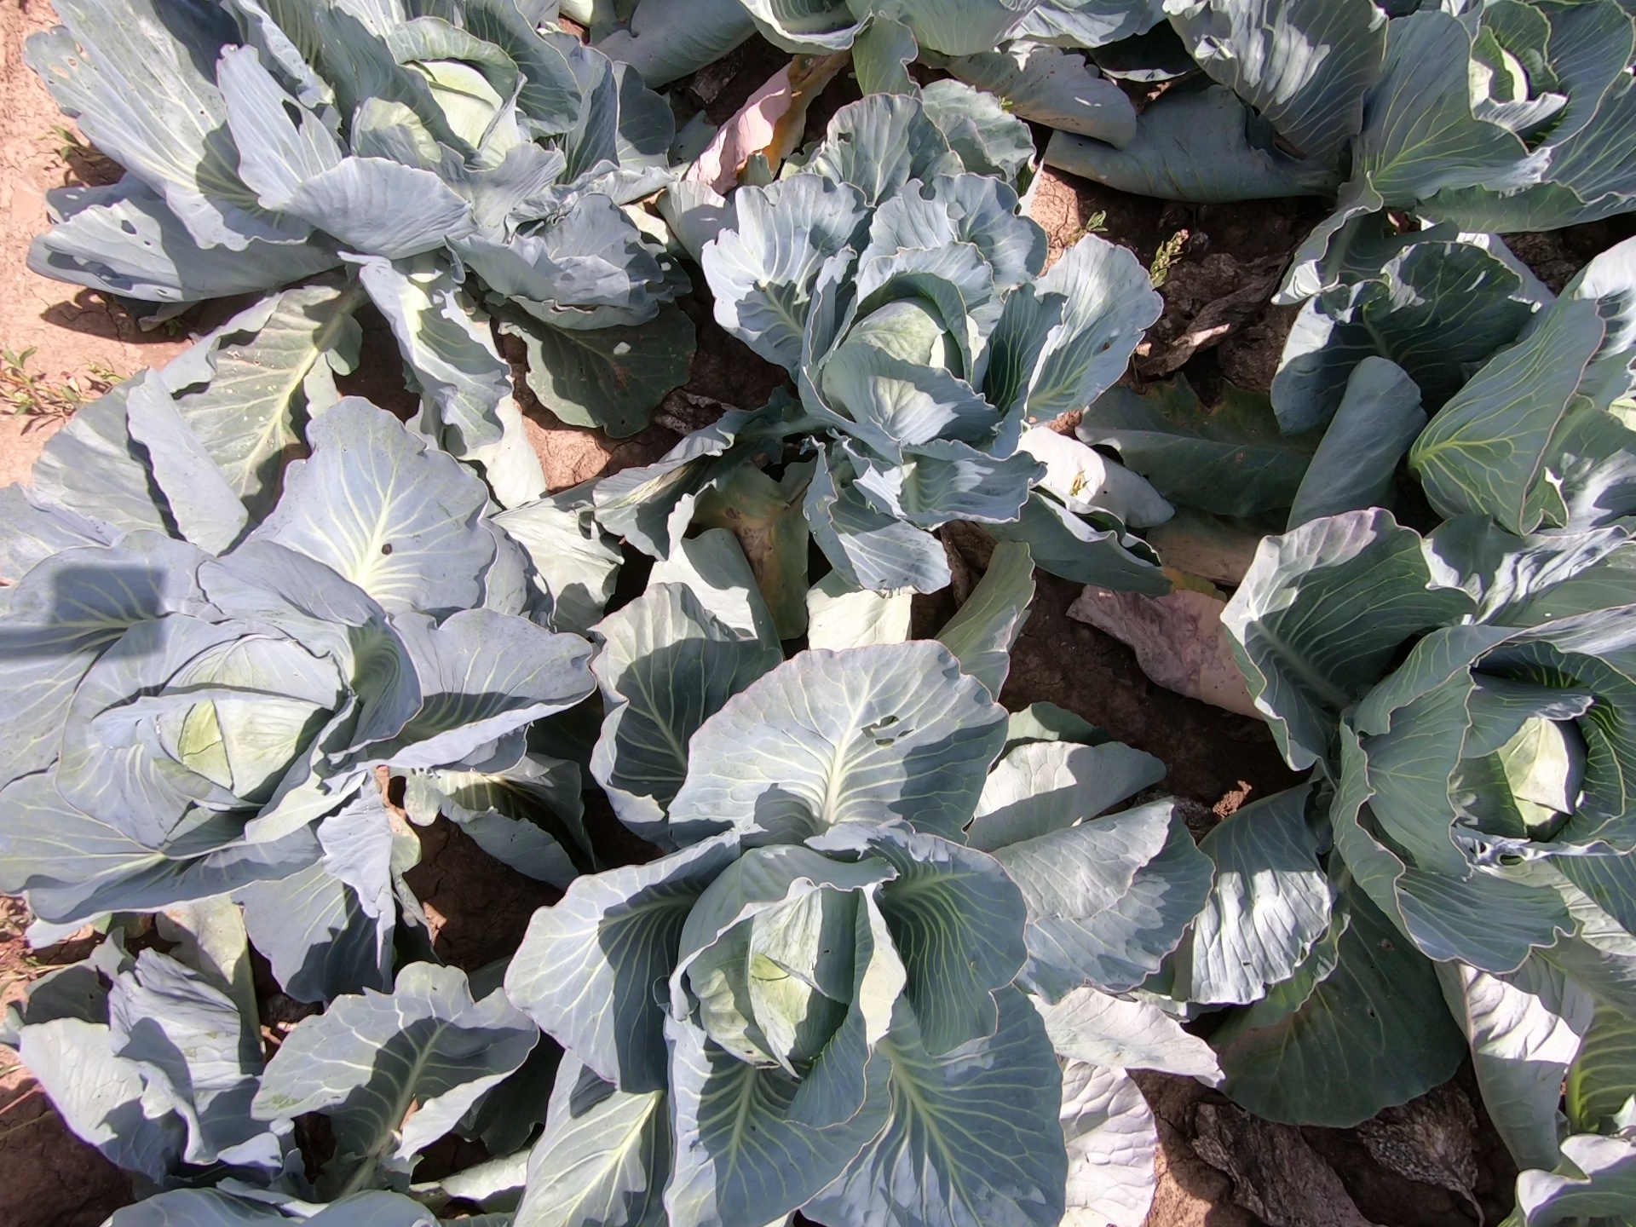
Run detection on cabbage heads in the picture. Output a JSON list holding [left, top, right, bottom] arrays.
[[349, 55, 526, 214], [1378, 677, 1602, 849], [837, 297, 982, 439], [1429, 41, 1533, 144], [155, 635, 341, 804], [1484, 379, 1631, 524], [691, 857, 889, 1069]]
